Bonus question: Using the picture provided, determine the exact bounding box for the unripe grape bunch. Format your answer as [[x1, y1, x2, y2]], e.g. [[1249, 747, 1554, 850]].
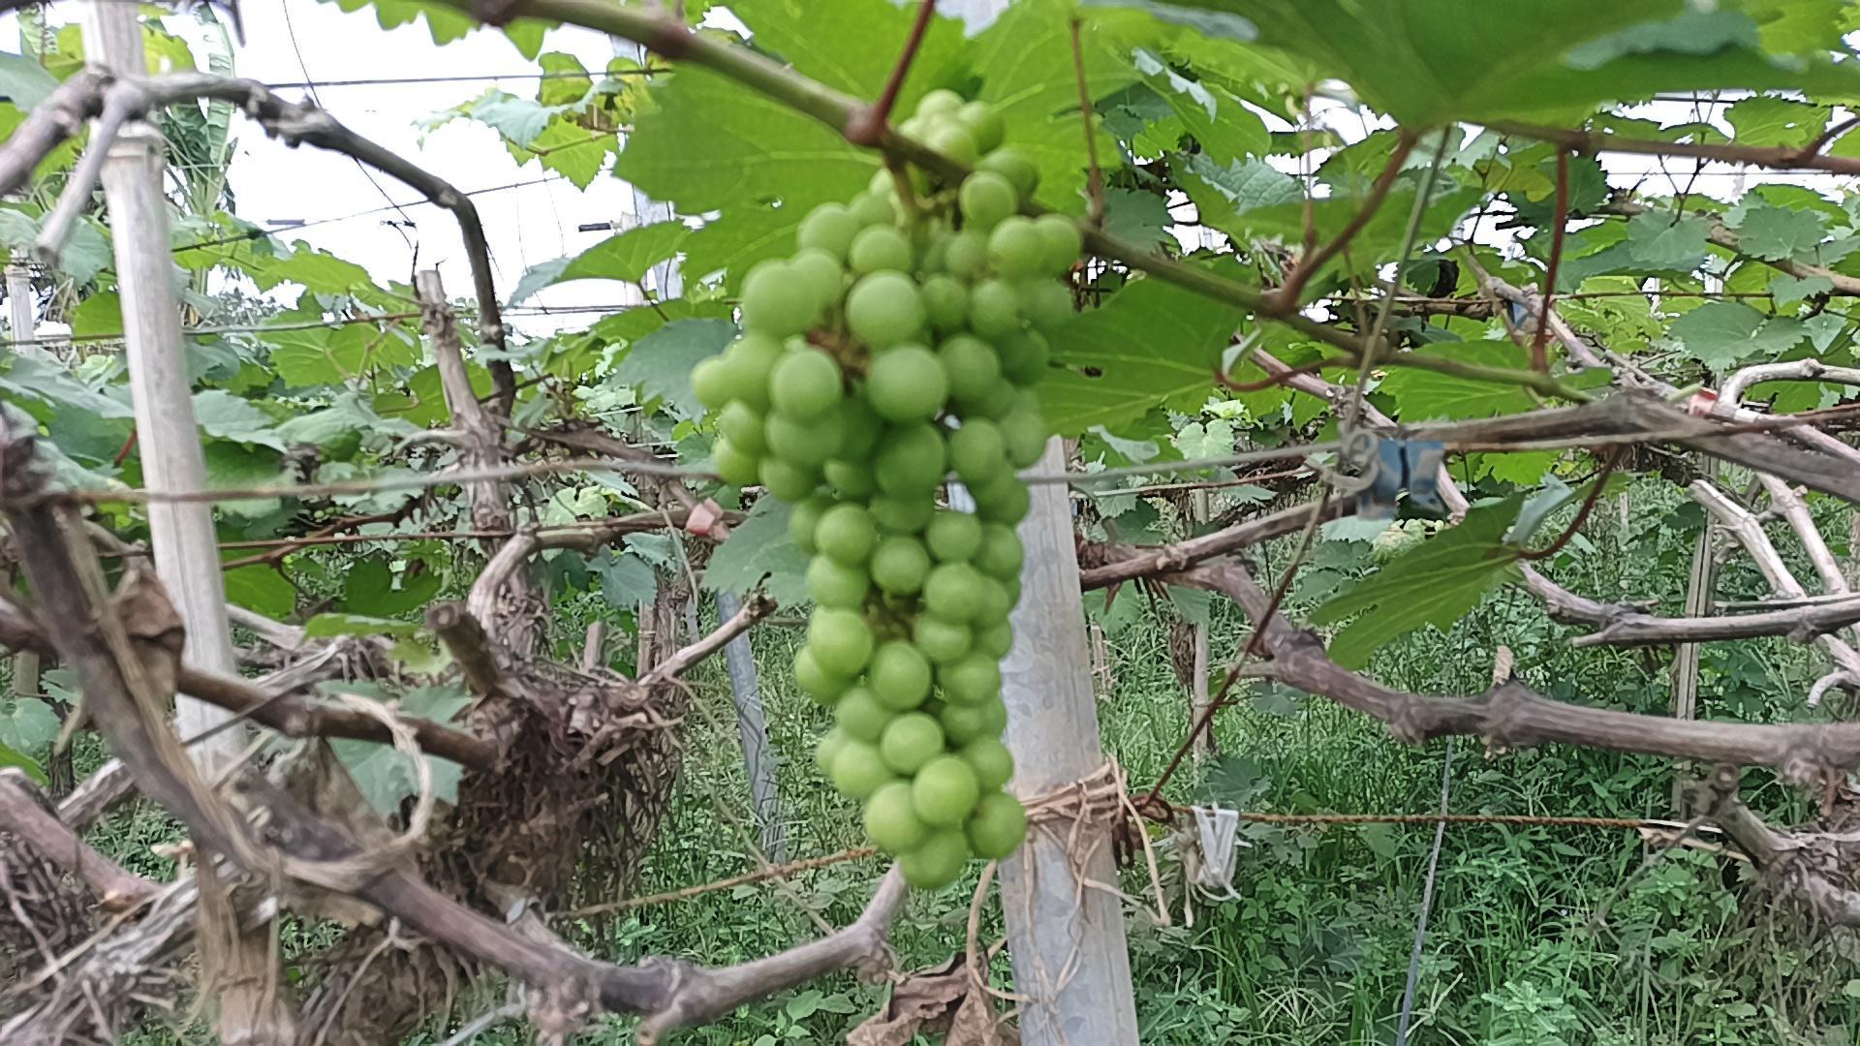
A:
[[692, 91, 1080, 886]]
